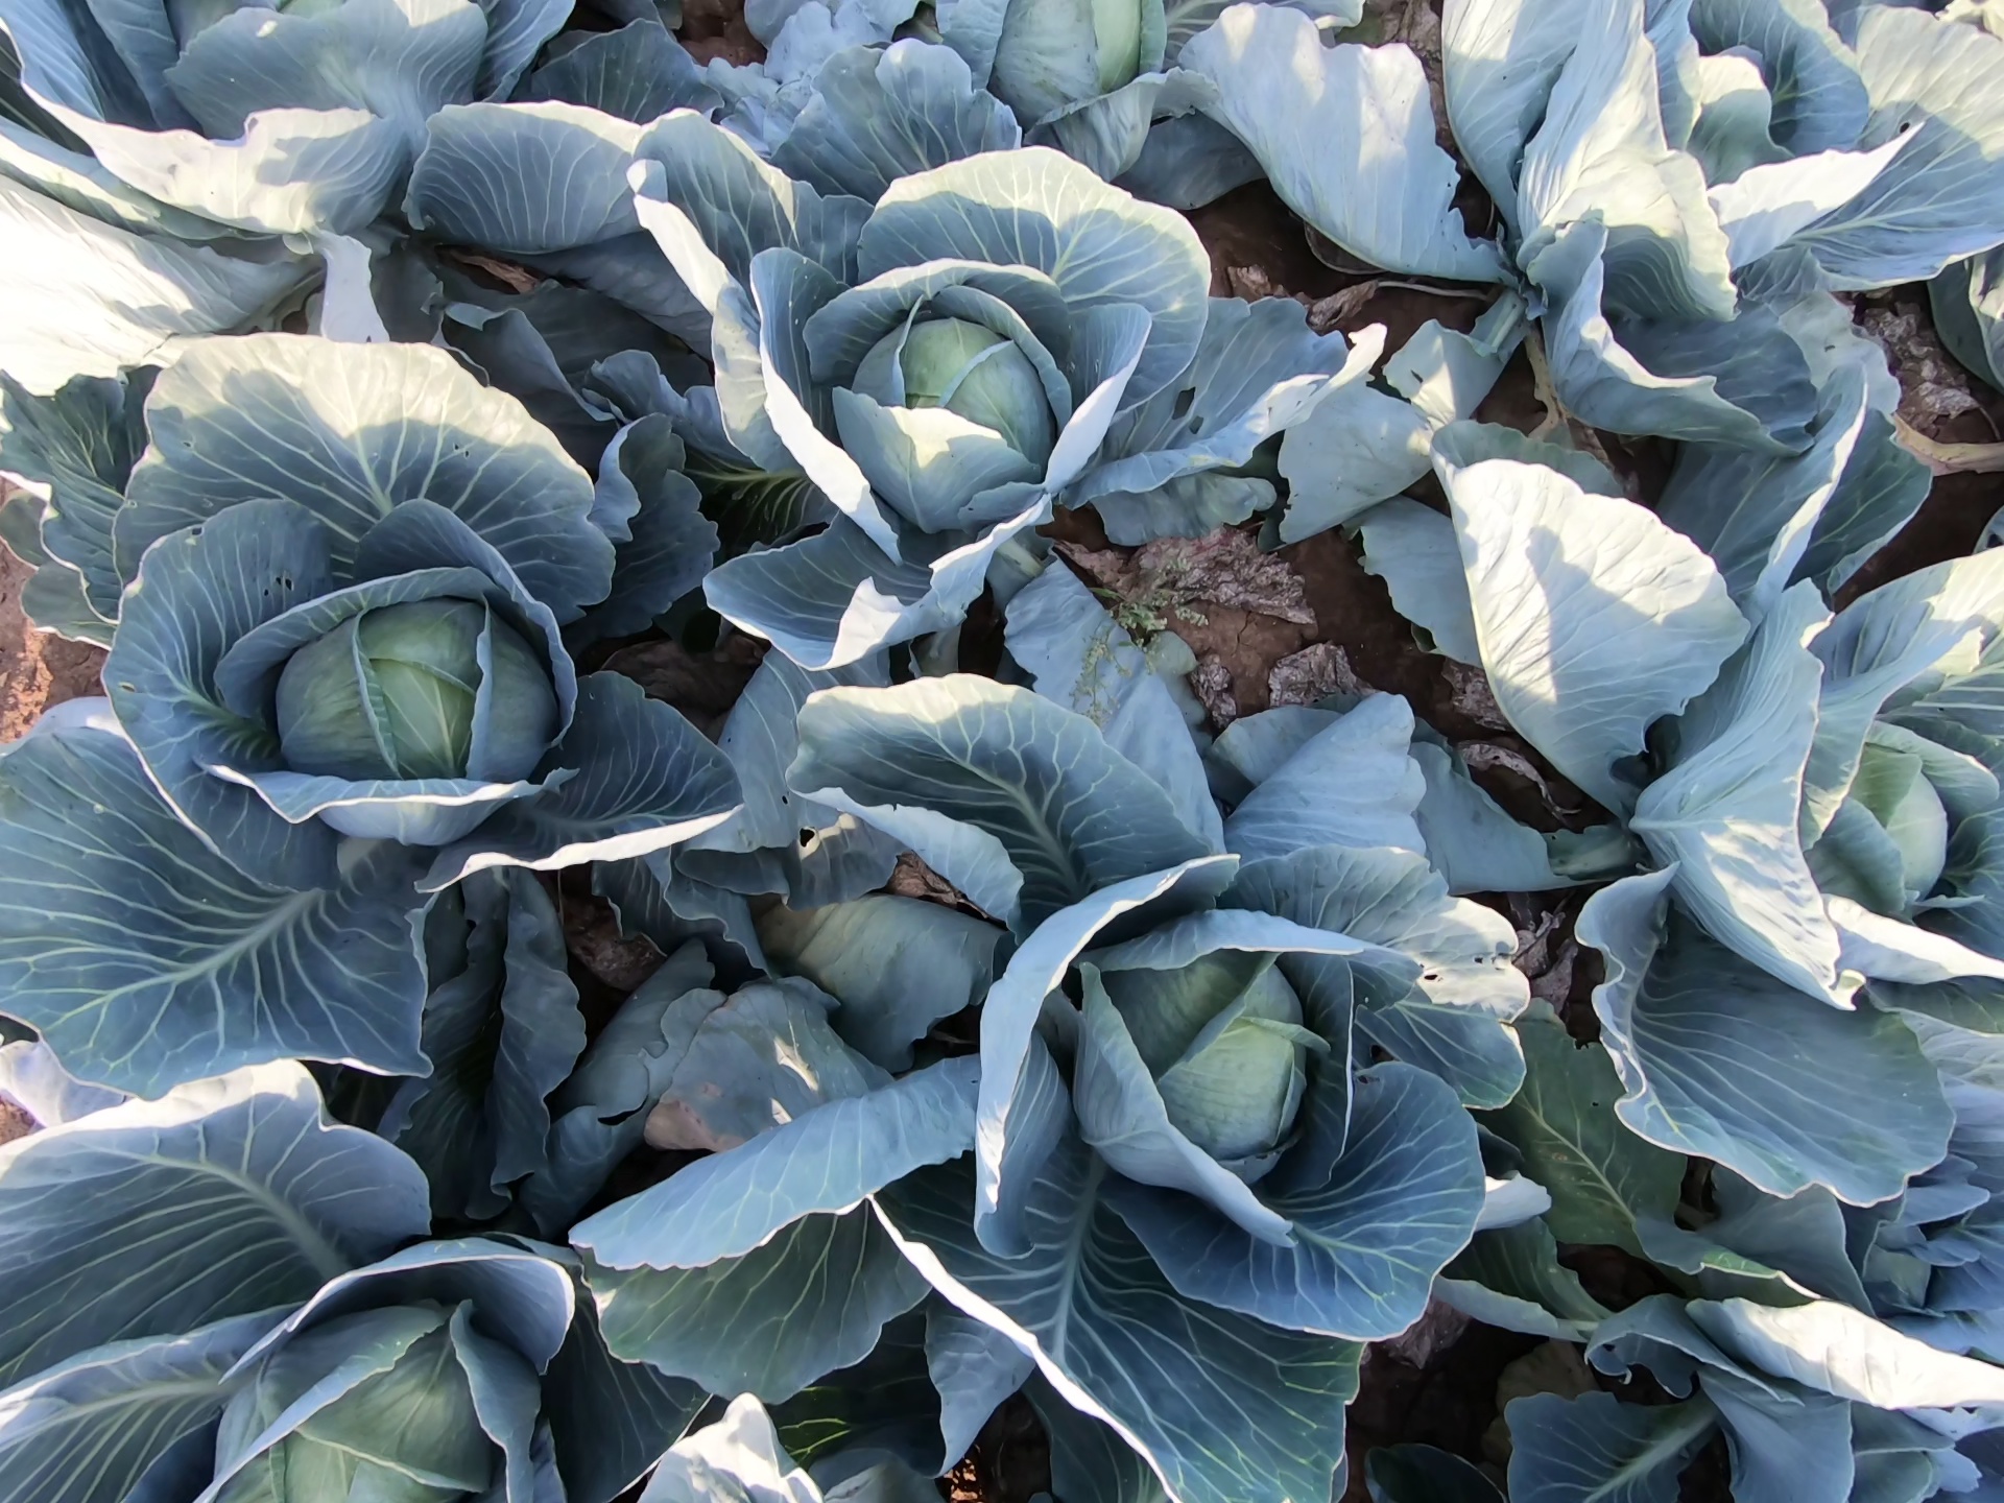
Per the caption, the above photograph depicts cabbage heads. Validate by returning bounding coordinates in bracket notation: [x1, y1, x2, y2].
[213, 1316, 499, 1497]
[1092, 933, 1304, 1194]
[1761, 753, 1950, 936]
[1831, 1189, 1932, 1314]
[841, 320, 1051, 504]
[275, 599, 550, 813]
[975, 2, 1145, 121]
[167, 0, 438, 123]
